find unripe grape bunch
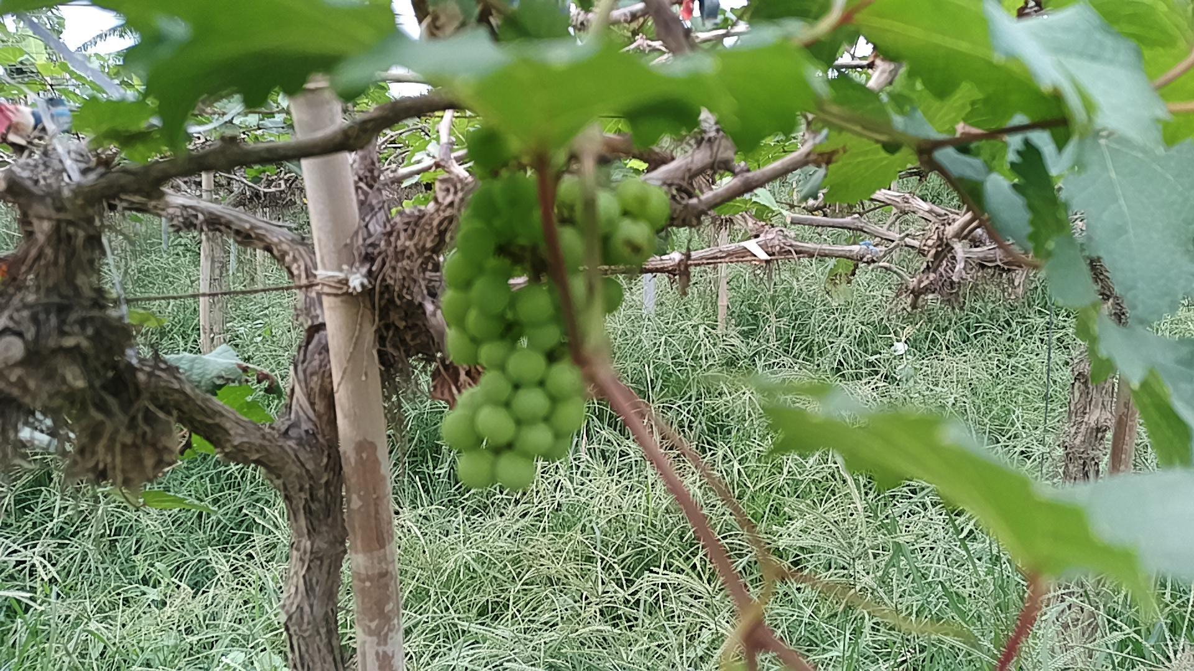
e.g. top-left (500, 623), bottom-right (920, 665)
top-left (442, 129), bottom-right (675, 490)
